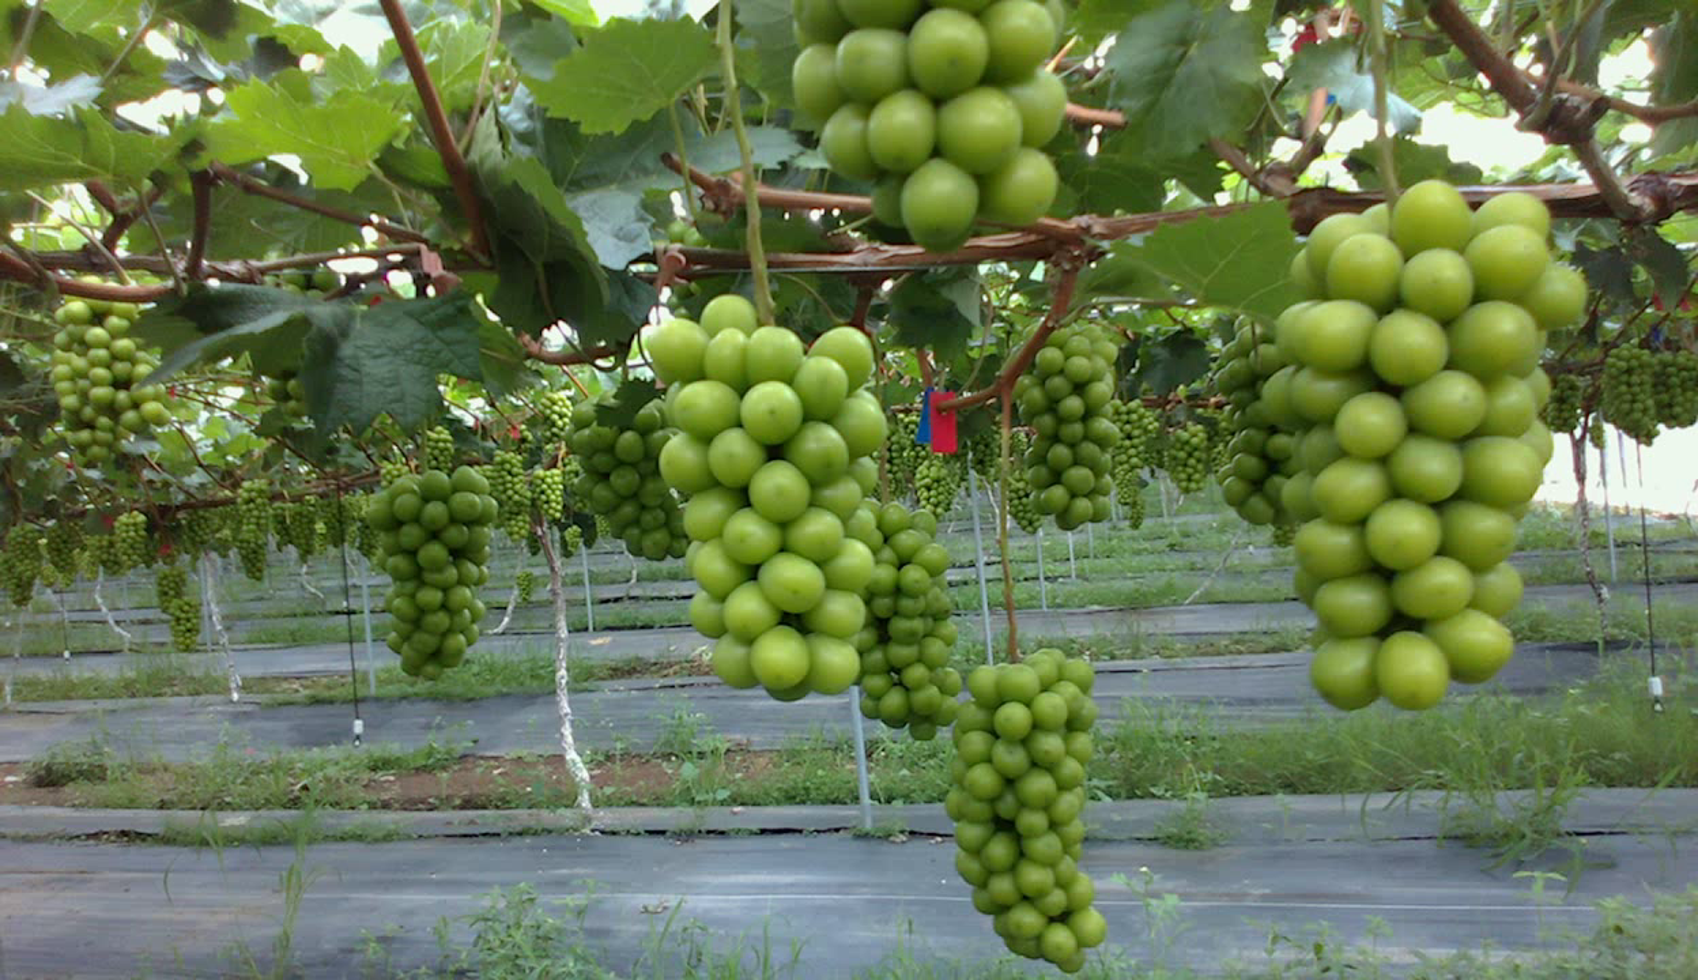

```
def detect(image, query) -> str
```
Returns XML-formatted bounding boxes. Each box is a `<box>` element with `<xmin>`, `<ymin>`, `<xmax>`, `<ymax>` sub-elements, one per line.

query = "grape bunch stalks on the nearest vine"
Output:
<box><xmin>1367</xmin><ymin>0</ymin><xmax>1397</xmax><ymax>238</ymax></box>
<box><xmin>714</xmin><ymin>0</ymin><xmax>777</xmax><ymax>327</ymax></box>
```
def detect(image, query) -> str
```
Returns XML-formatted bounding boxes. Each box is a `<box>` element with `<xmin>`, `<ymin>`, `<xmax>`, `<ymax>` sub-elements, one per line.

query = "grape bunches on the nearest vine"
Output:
<box><xmin>1261</xmin><ymin>177</ymin><xmax>1588</xmax><ymax>713</ymax></box>
<box><xmin>649</xmin><ymin>293</ymin><xmax>886</xmax><ymax>702</ymax></box>
<box><xmin>789</xmin><ymin>1</ymin><xmax>1067</xmax><ymax>252</ymax></box>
